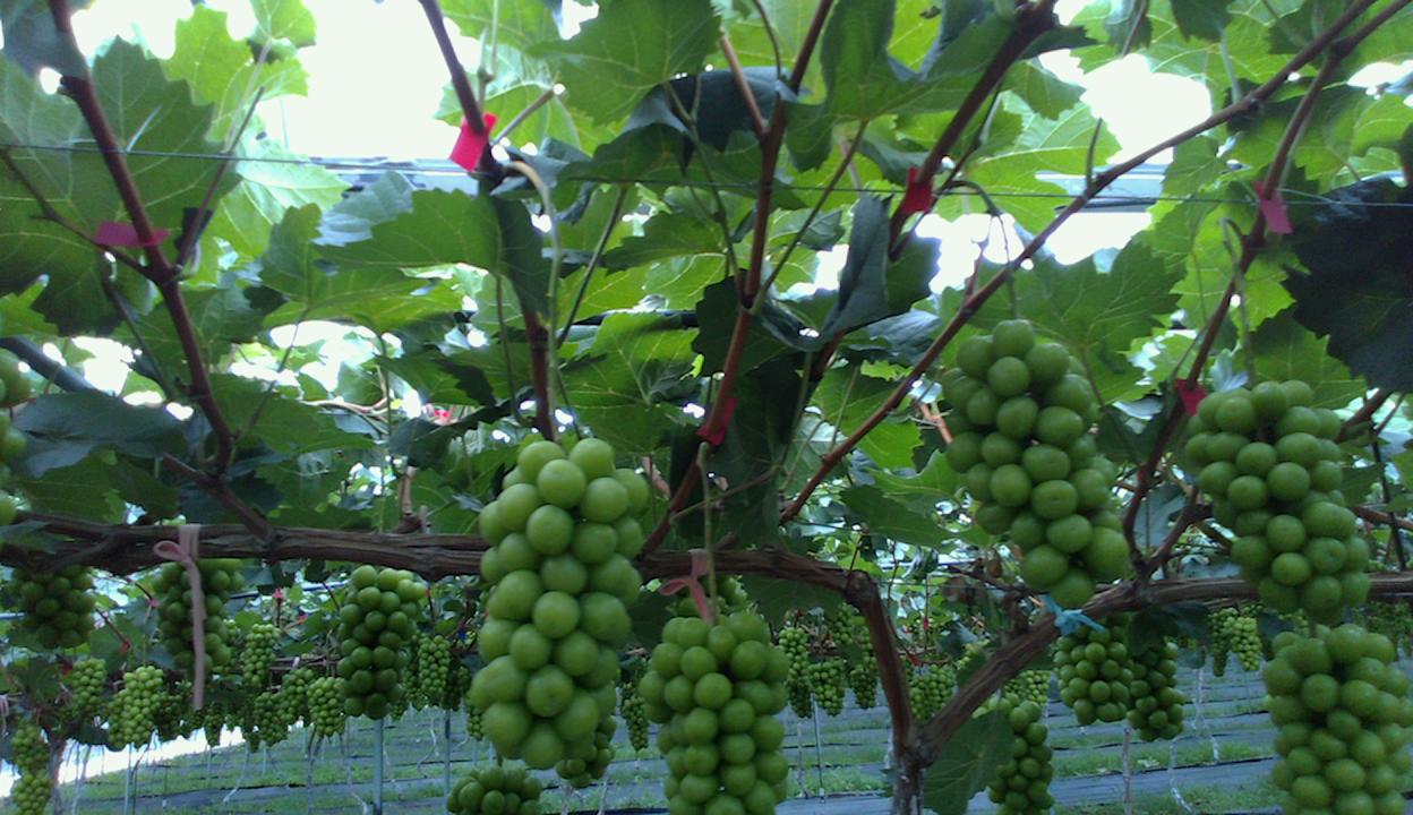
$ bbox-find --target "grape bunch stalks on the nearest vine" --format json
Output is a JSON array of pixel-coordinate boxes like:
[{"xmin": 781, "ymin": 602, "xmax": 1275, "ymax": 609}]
[
  {"xmin": 1308, "ymin": 616, "xmax": 1317, "ymax": 638},
  {"xmin": 696, "ymin": 441, "xmax": 721, "ymax": 627},
  {"xmin": 951, "ymin": 179, "xmax": 1018, "ymax": 318},
  {"xmin": 500, "ymin": 162, "xmax": 567, "ymax": 446},
  {"xmin": 1218, "ymin": 217, "xmax": 1258, "ymax": 387}
]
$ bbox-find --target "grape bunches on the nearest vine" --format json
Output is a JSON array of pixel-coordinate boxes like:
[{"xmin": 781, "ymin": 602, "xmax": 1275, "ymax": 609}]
[
  {"xmin": 1183, "ymin": 380, "xmax": 1372, "ymax": 615},
  {"xmin": 469, "ymin": 438, "xmax": 646, "ymax": 770},
  {"xmin": 639, "ymin": 611, "xmax": 789, "ymax": 813},
  {"xmin": 1259, "ymin": 621, "xmax": 1412, "ymax": 814},
  {"xmin": 940, "ymin": 318, "xmax": 1131, "ymax": 610}
]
